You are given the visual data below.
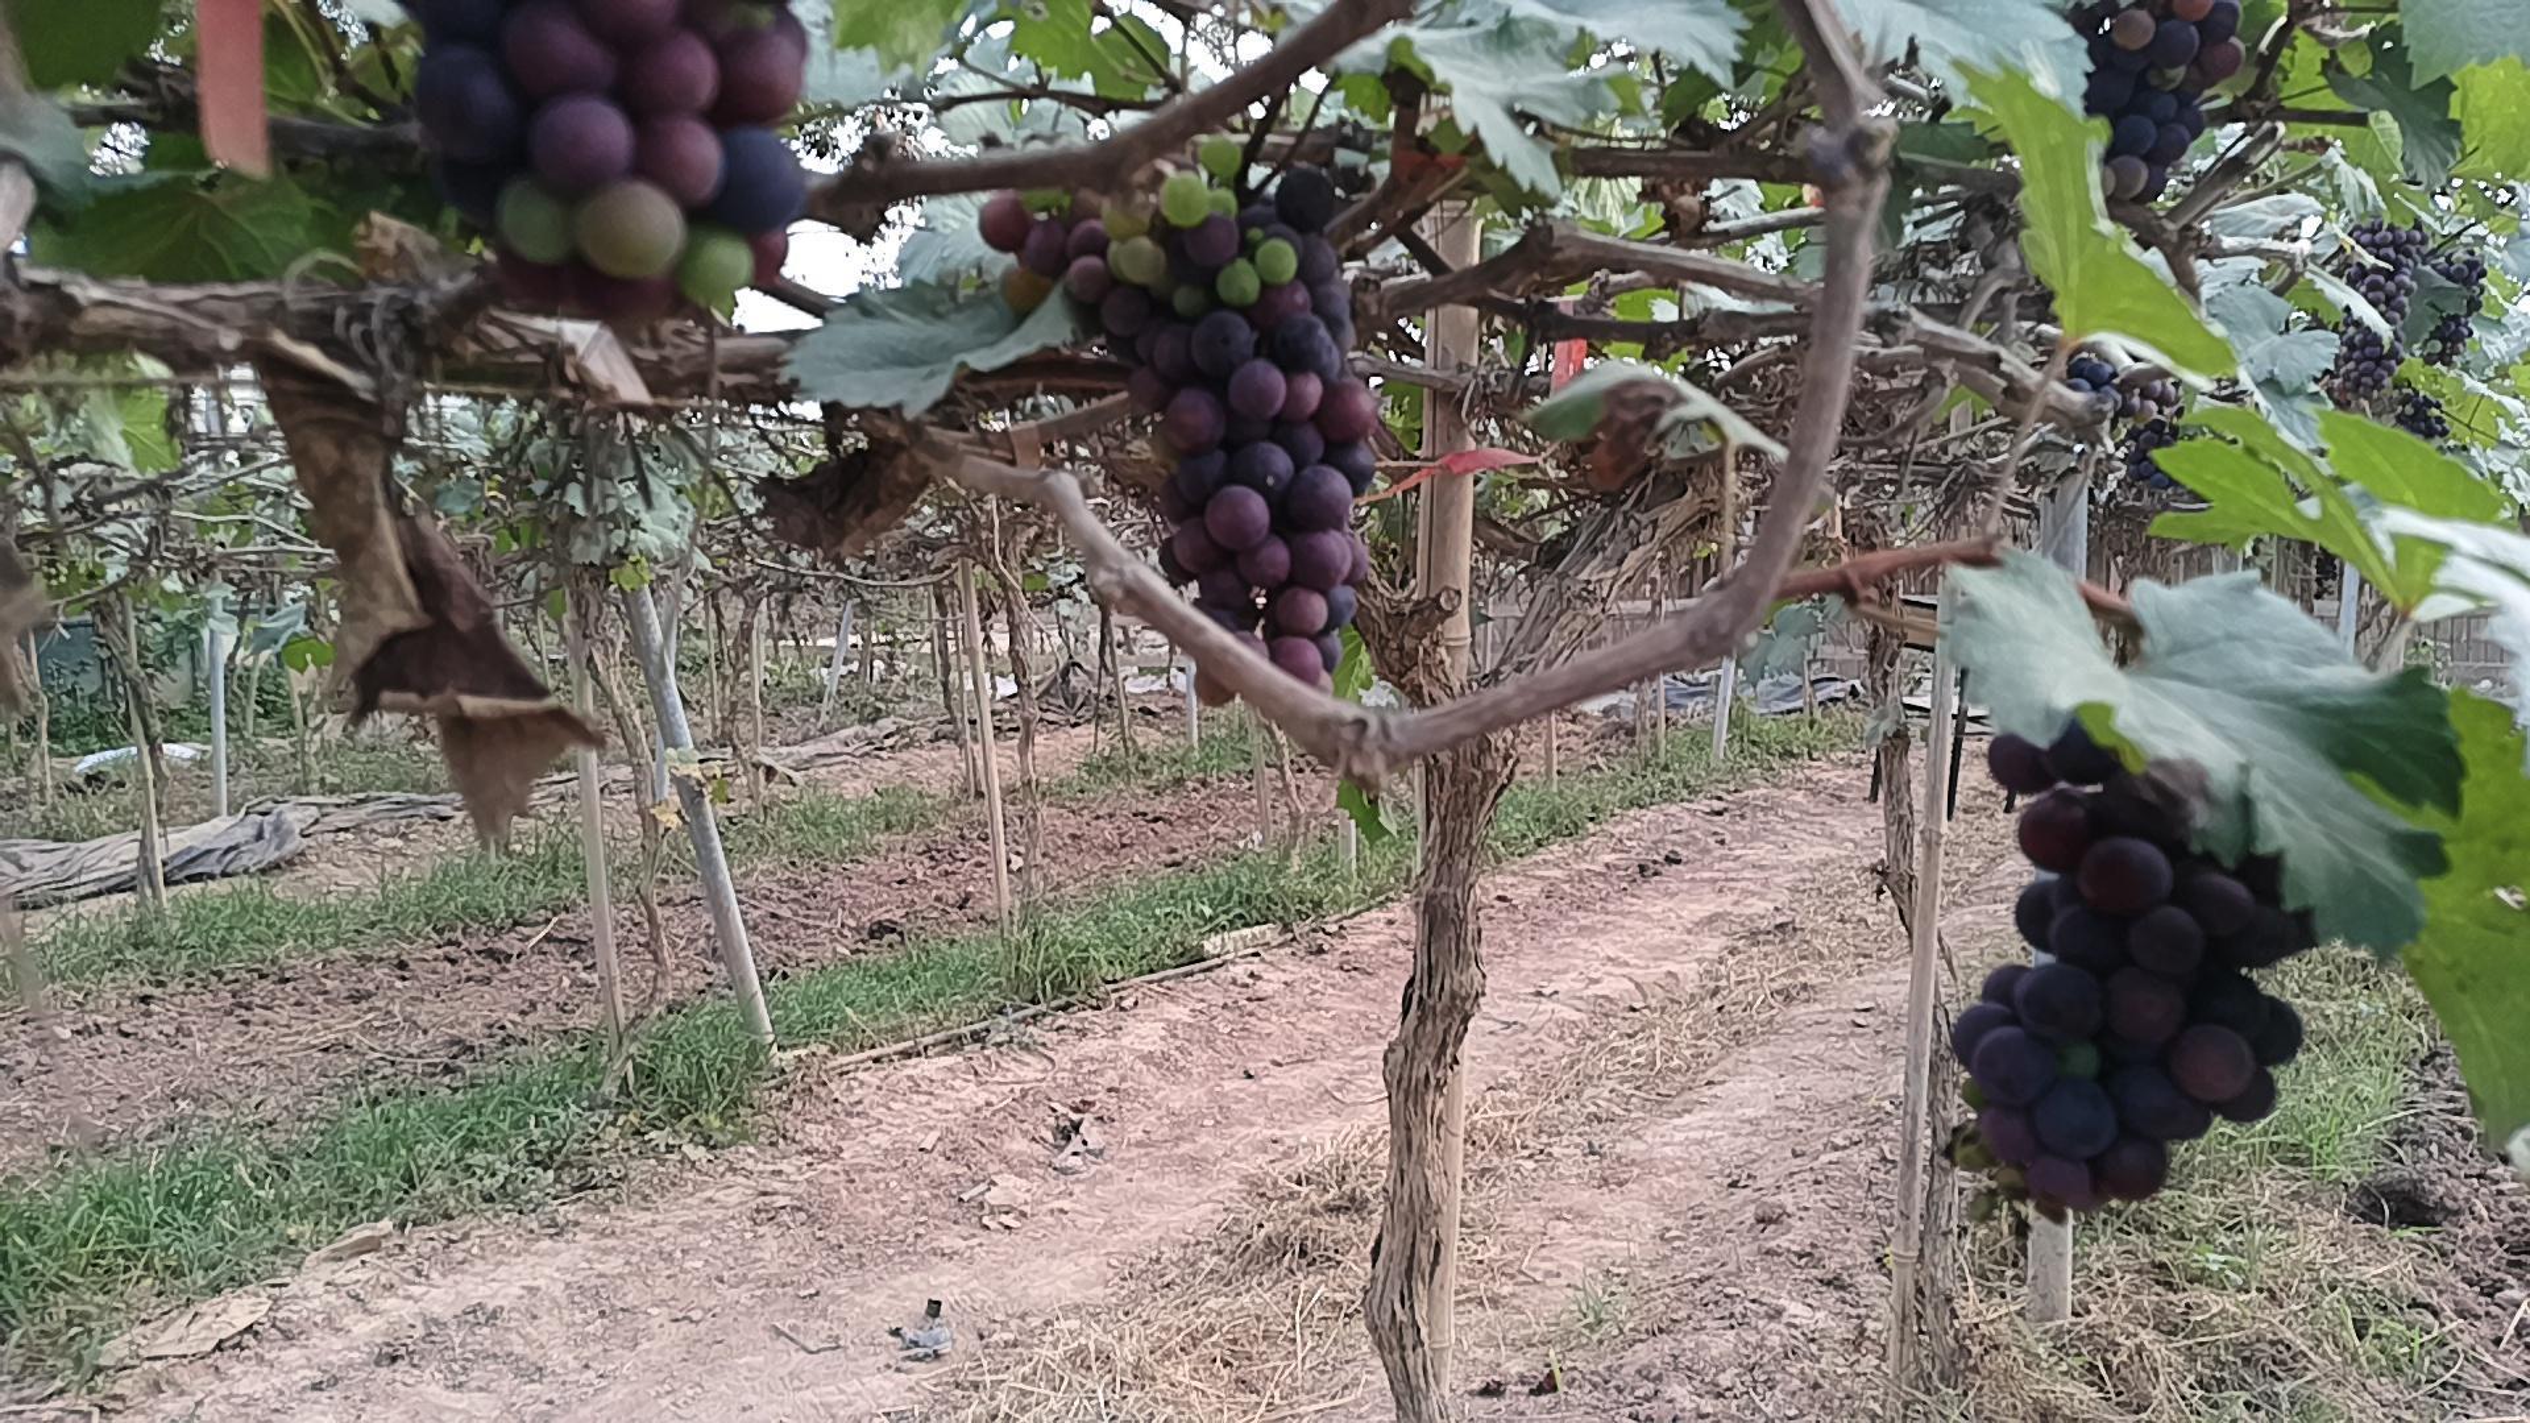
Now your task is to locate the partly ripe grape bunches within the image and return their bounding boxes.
[398,0,808,312]
[2384,376,2454,447]
[2065,343,2181,444]
[979,136,1378,705]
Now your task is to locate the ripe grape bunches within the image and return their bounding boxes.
[2326,221,2427,408]
[2066,0,2244,200]
[2127,416,2183,495]
[1952,721,2315,1210]
[2405,246,2487,365]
